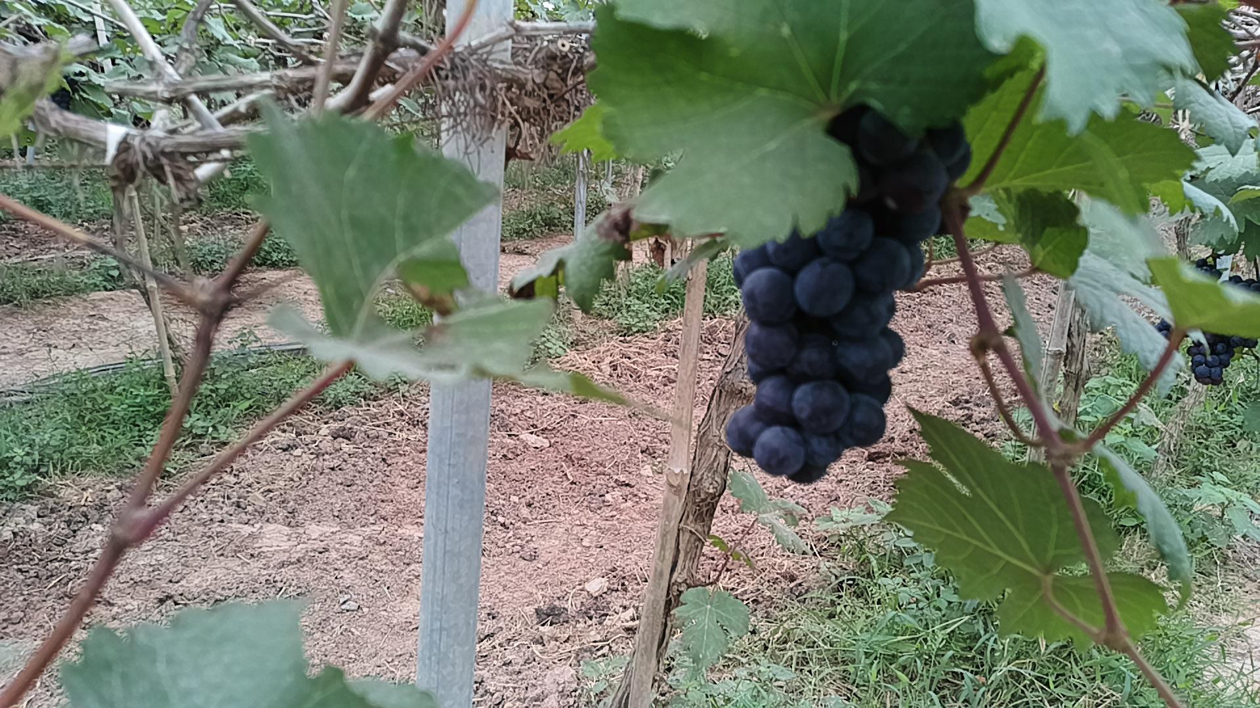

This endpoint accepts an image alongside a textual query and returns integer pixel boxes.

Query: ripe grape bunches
[1186,275,1259,386]
[727,106,970,482]
[1154,257,1222,342]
